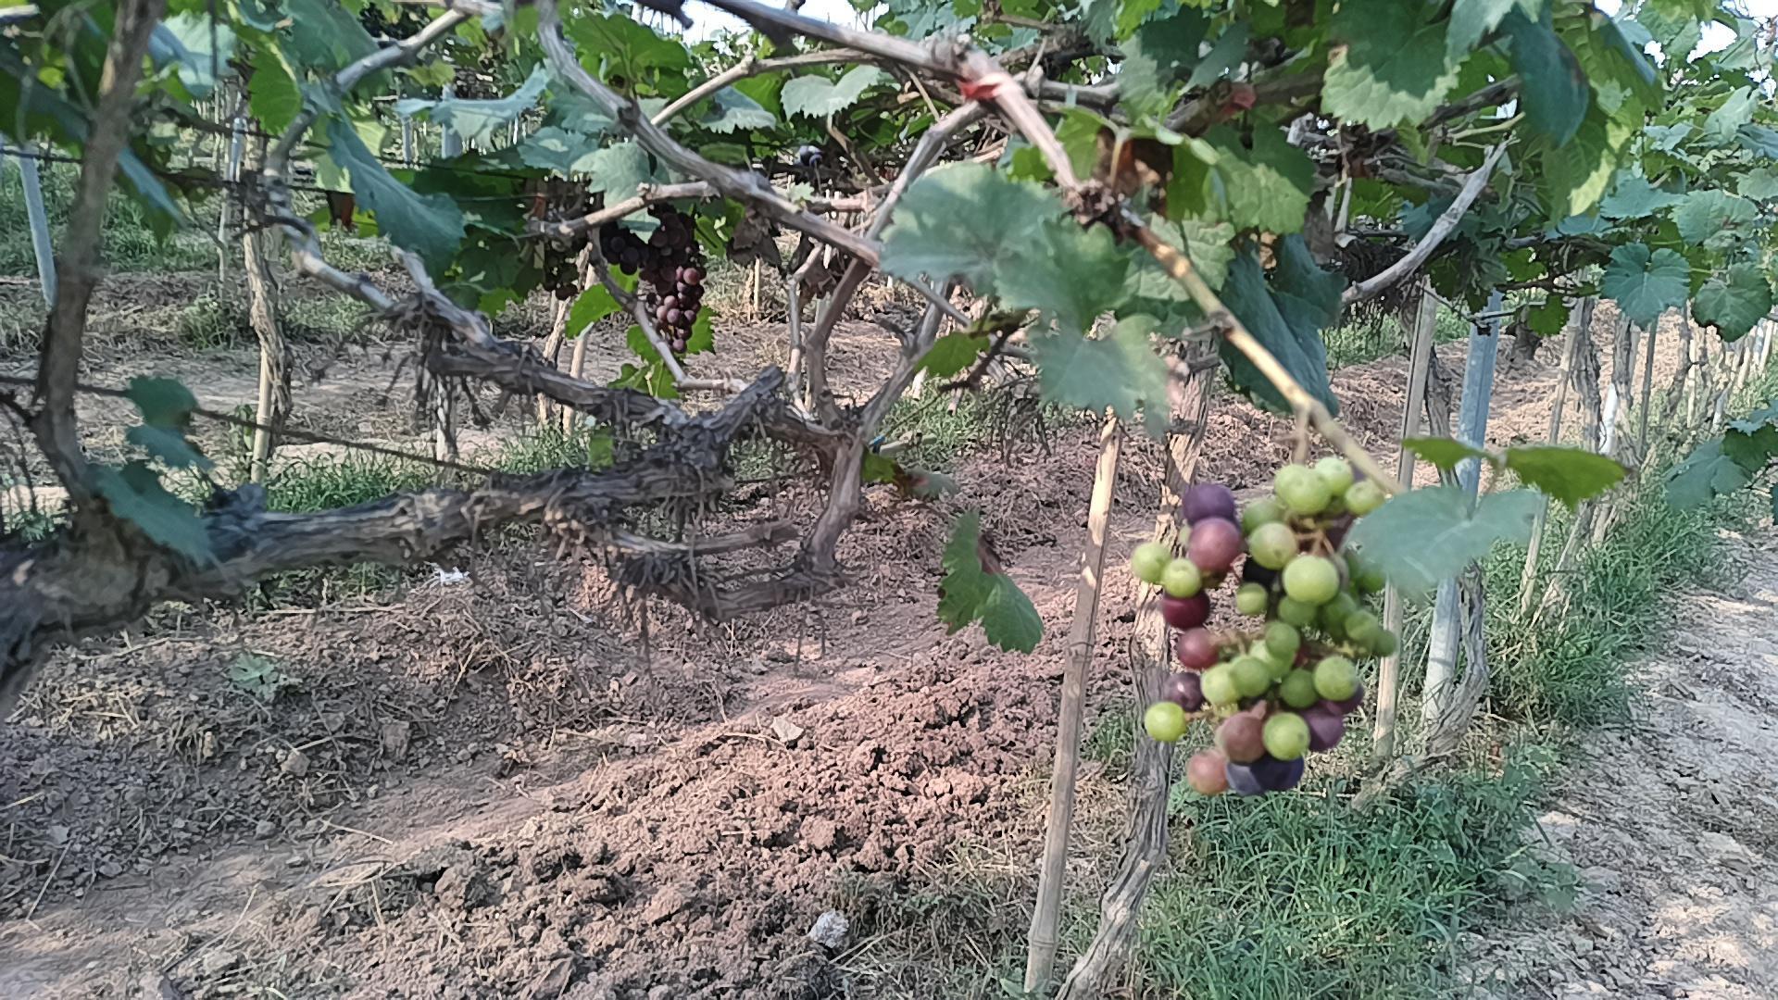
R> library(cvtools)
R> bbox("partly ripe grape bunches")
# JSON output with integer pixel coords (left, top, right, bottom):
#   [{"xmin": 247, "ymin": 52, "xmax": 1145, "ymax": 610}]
[
  {"xmin": 543, "ymin": 236, "xmax": 584, "ymax": 297},
  {"xmin": 598, "ymin": 220, "xmax": 647, "ymax": 275},
  {"xmin": 1132, "ymin": 457, "xmax": 1396, "ymax": 794}
]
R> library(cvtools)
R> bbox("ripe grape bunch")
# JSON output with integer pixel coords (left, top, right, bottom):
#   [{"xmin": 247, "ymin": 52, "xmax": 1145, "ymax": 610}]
[{"xmin": 641, "ymin": 202, "xmax": 709, "ymax": 356}]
